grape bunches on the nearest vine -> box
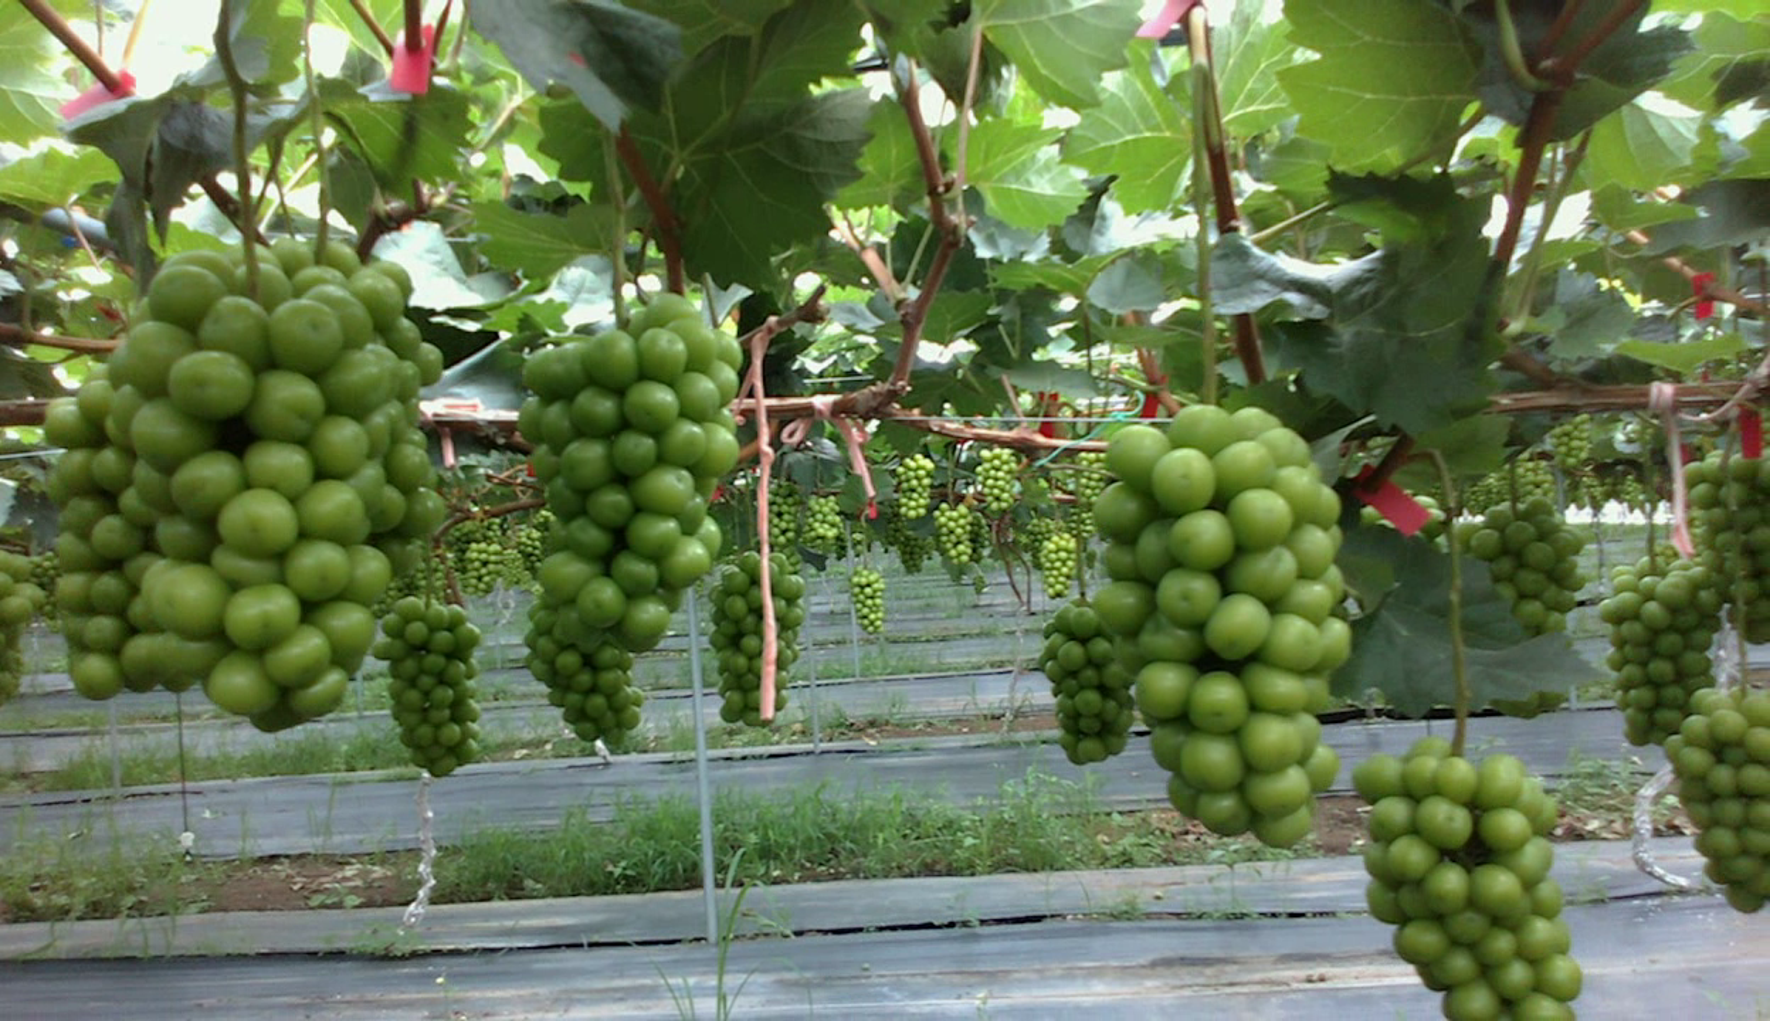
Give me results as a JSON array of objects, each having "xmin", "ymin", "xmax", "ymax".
[
  {"xmin": 1350, "ymin": 736, "xmax": 1581, "ymax": 1020},
  {"xmin": 98, "ymin": 233, "xmax": 445, "ymax": 733},
  {"xmin": 1092, "ymin": 401, "xmax": 1354, "ymax": 849},
  {"xmin": 516, "ymin": 294, "xmax": 743, "ymax": 652},
  {"xmin": 1662, "ymin": 686, "xmax": 1769, "ymax": 912}
]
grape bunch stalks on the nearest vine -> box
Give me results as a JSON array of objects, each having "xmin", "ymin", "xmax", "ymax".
[
  {"xmin": 599, "ymin": 119, "xmax": 628, "ymax": 330},
  {"xmin": 1407, "ymin": 447, "xmax": 1471, "ymax": 756},
  {"xmin": 1722, "ymin": 420, "xmax": 1749, "ymax": 696},
  {"xmin": 211, "ymin": 1, "xmax": 258, "ymax": 299},
  {"xmin": 1187, "ymin": 4, "xmax": 1218, "ymax": 404}
]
